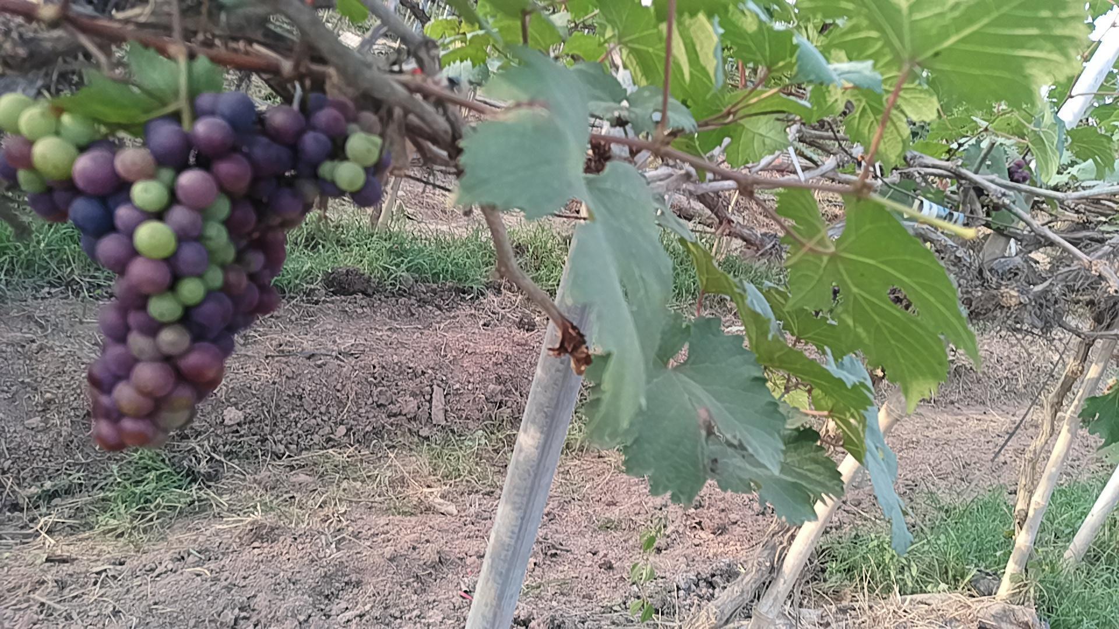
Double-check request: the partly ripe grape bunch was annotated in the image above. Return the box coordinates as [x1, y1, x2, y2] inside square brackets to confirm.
[0, 91, 392, 450]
